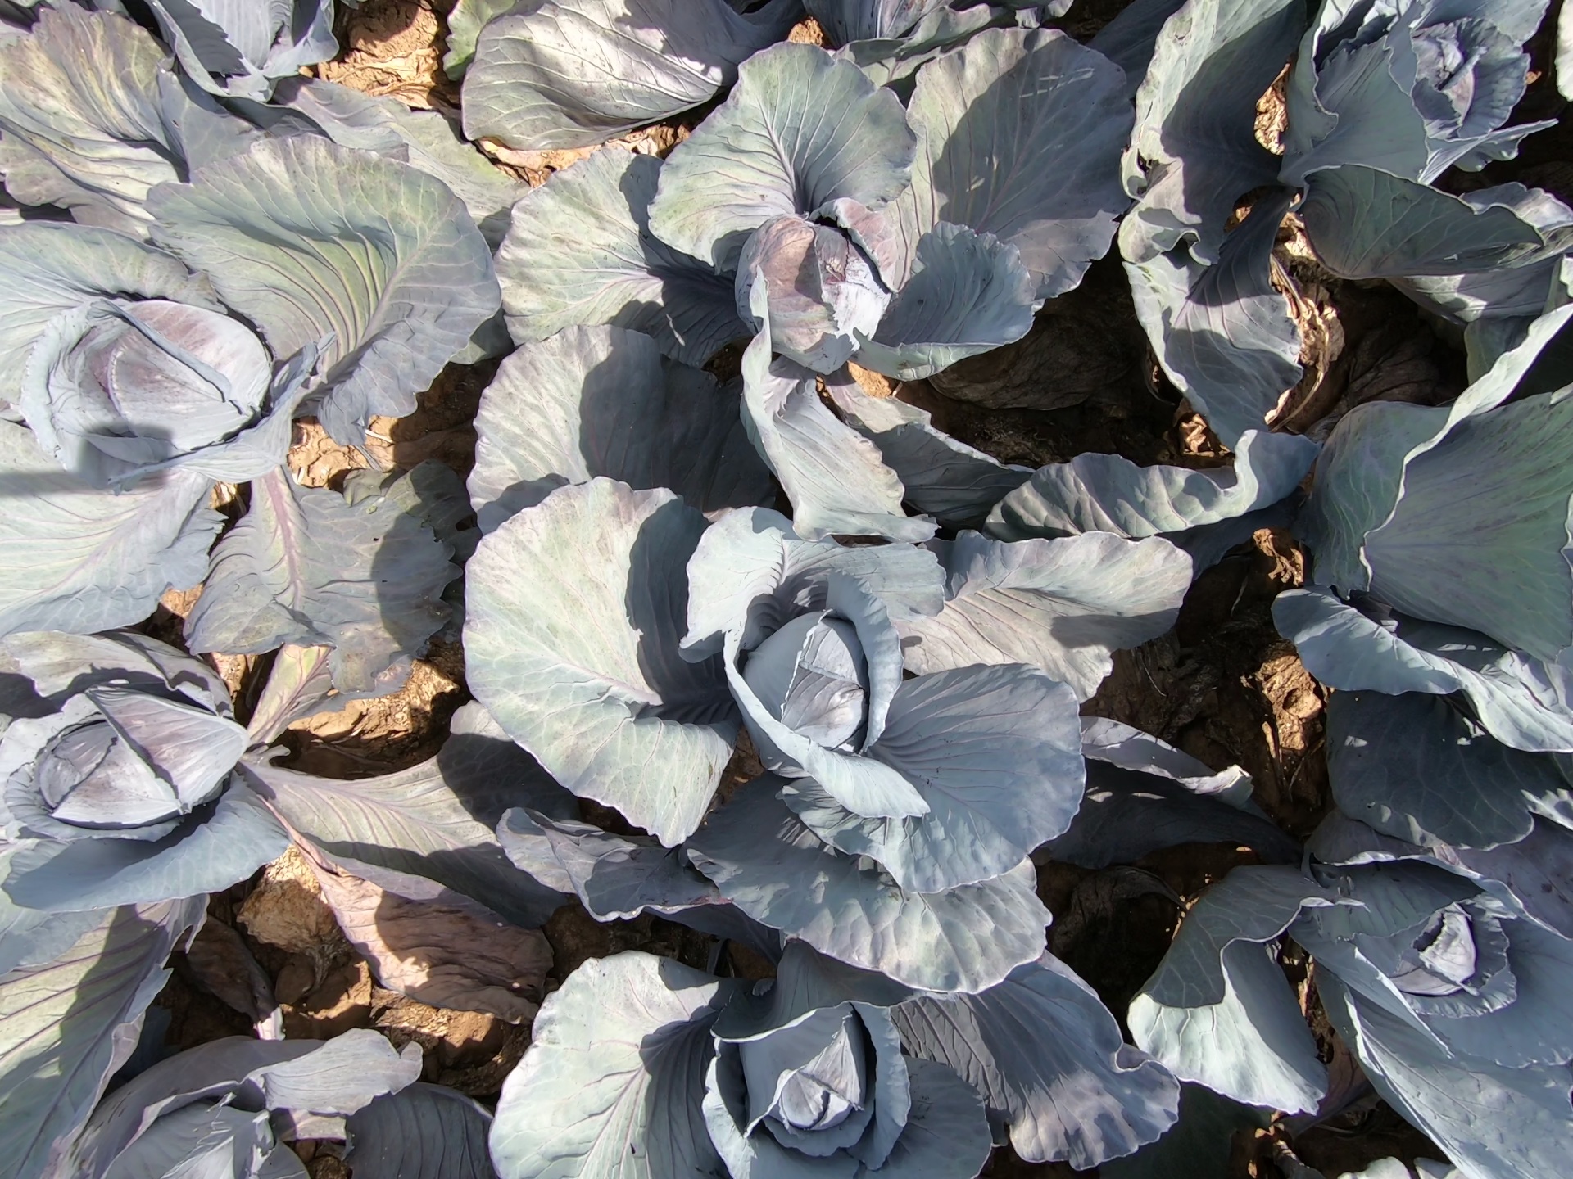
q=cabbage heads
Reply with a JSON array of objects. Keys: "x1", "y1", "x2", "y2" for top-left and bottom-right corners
[
  {"x1": 1336, "y1": 871, "x2": 1477, "y2": 999},
  {"x1": 67, "y1": 303, "x2": 264, "y2": 458},
  {"x1": 744, "y1": 617, "x2": 880, "y2": 770},
  {"x1": 35, "y1": 725, "x2": 197, "y2": 832},
  {"x1": 737, "y1": 216, "x2": 894, "y2": 362},
  {"x1": 61, "y1": 1095, "x2": 277, "y2": 1177},
  {"x1": 1361, "y1": 38, "x2": 1477, "y2": 154},
  {"x1": 759, "y1": 1014, "x2": 866, "y2": 1137}
]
